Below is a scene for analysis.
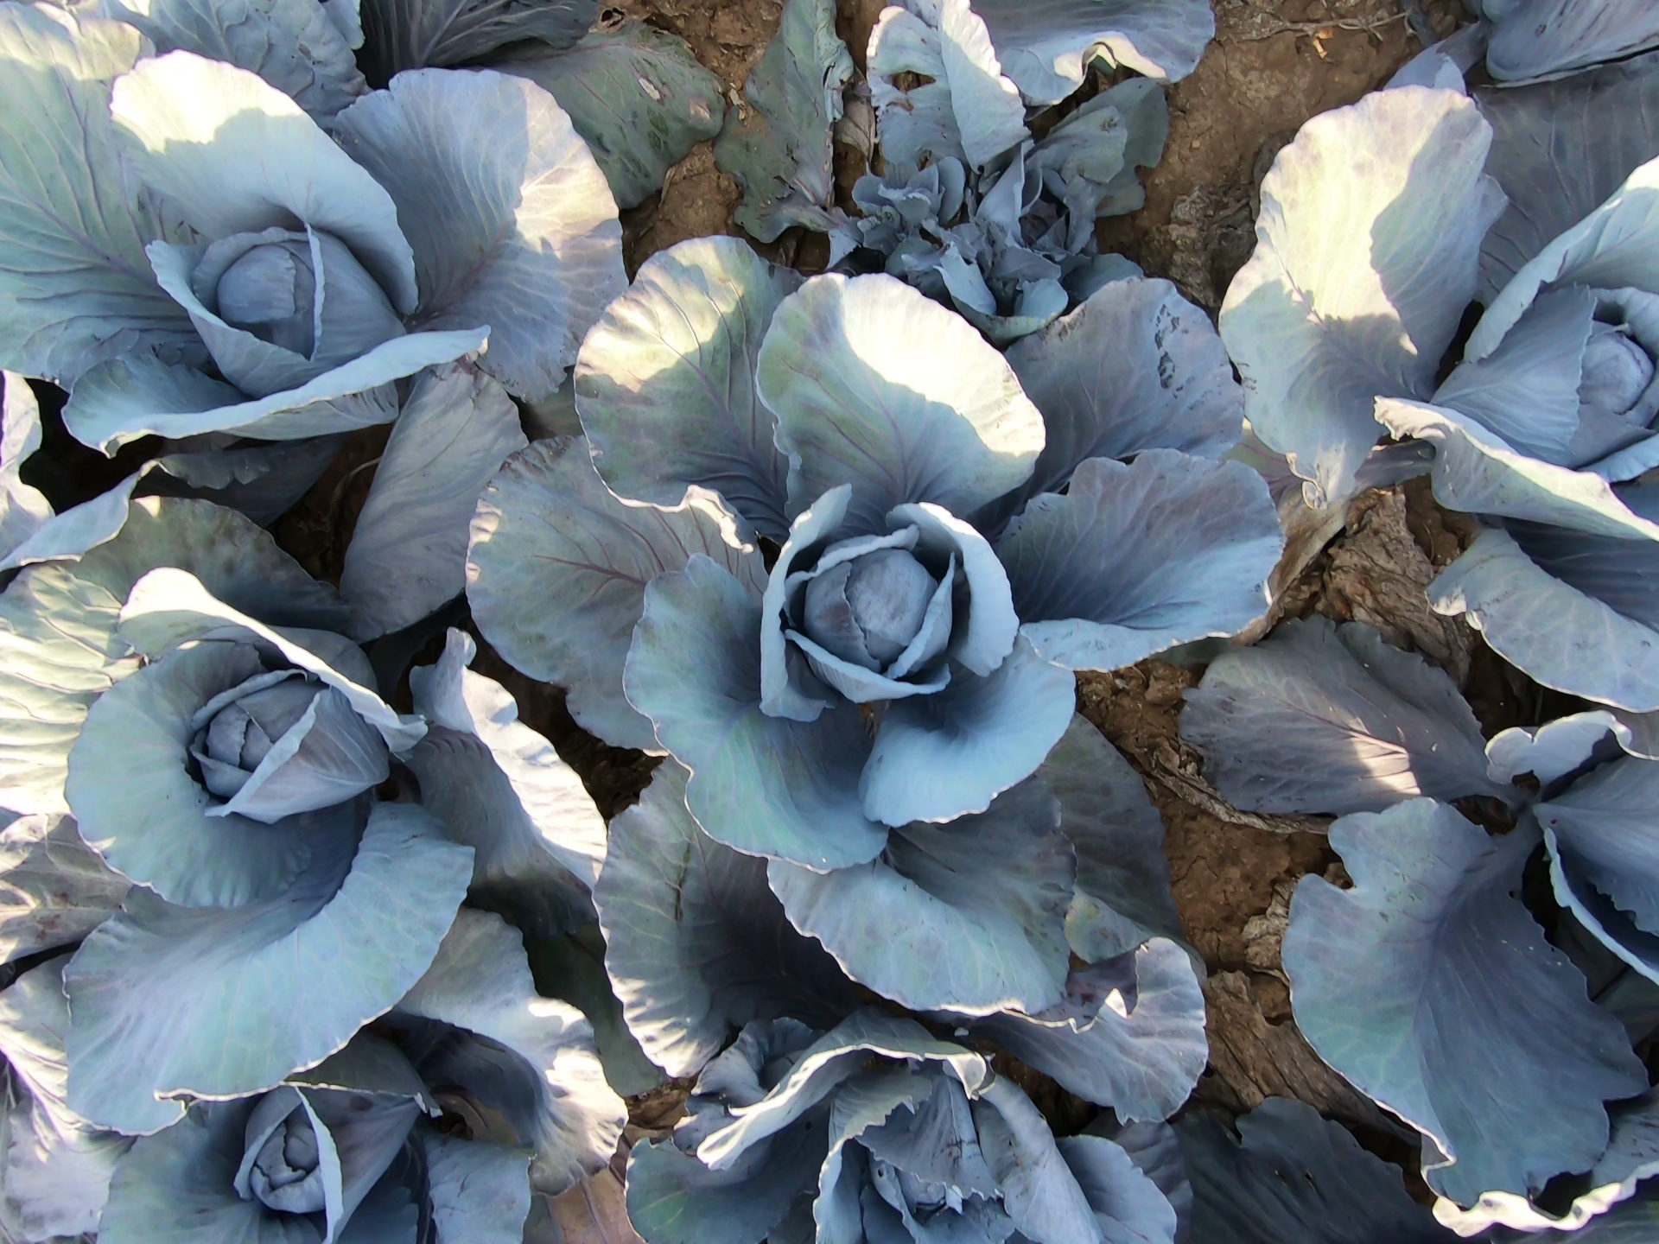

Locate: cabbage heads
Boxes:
[211,235,380,381]
[804,537,944,682]
[882,1101,975,1206]
[988,195,1070,270]
[1490,315,1656,453]
[206,680,365,804]
[245,1064,410,1210]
